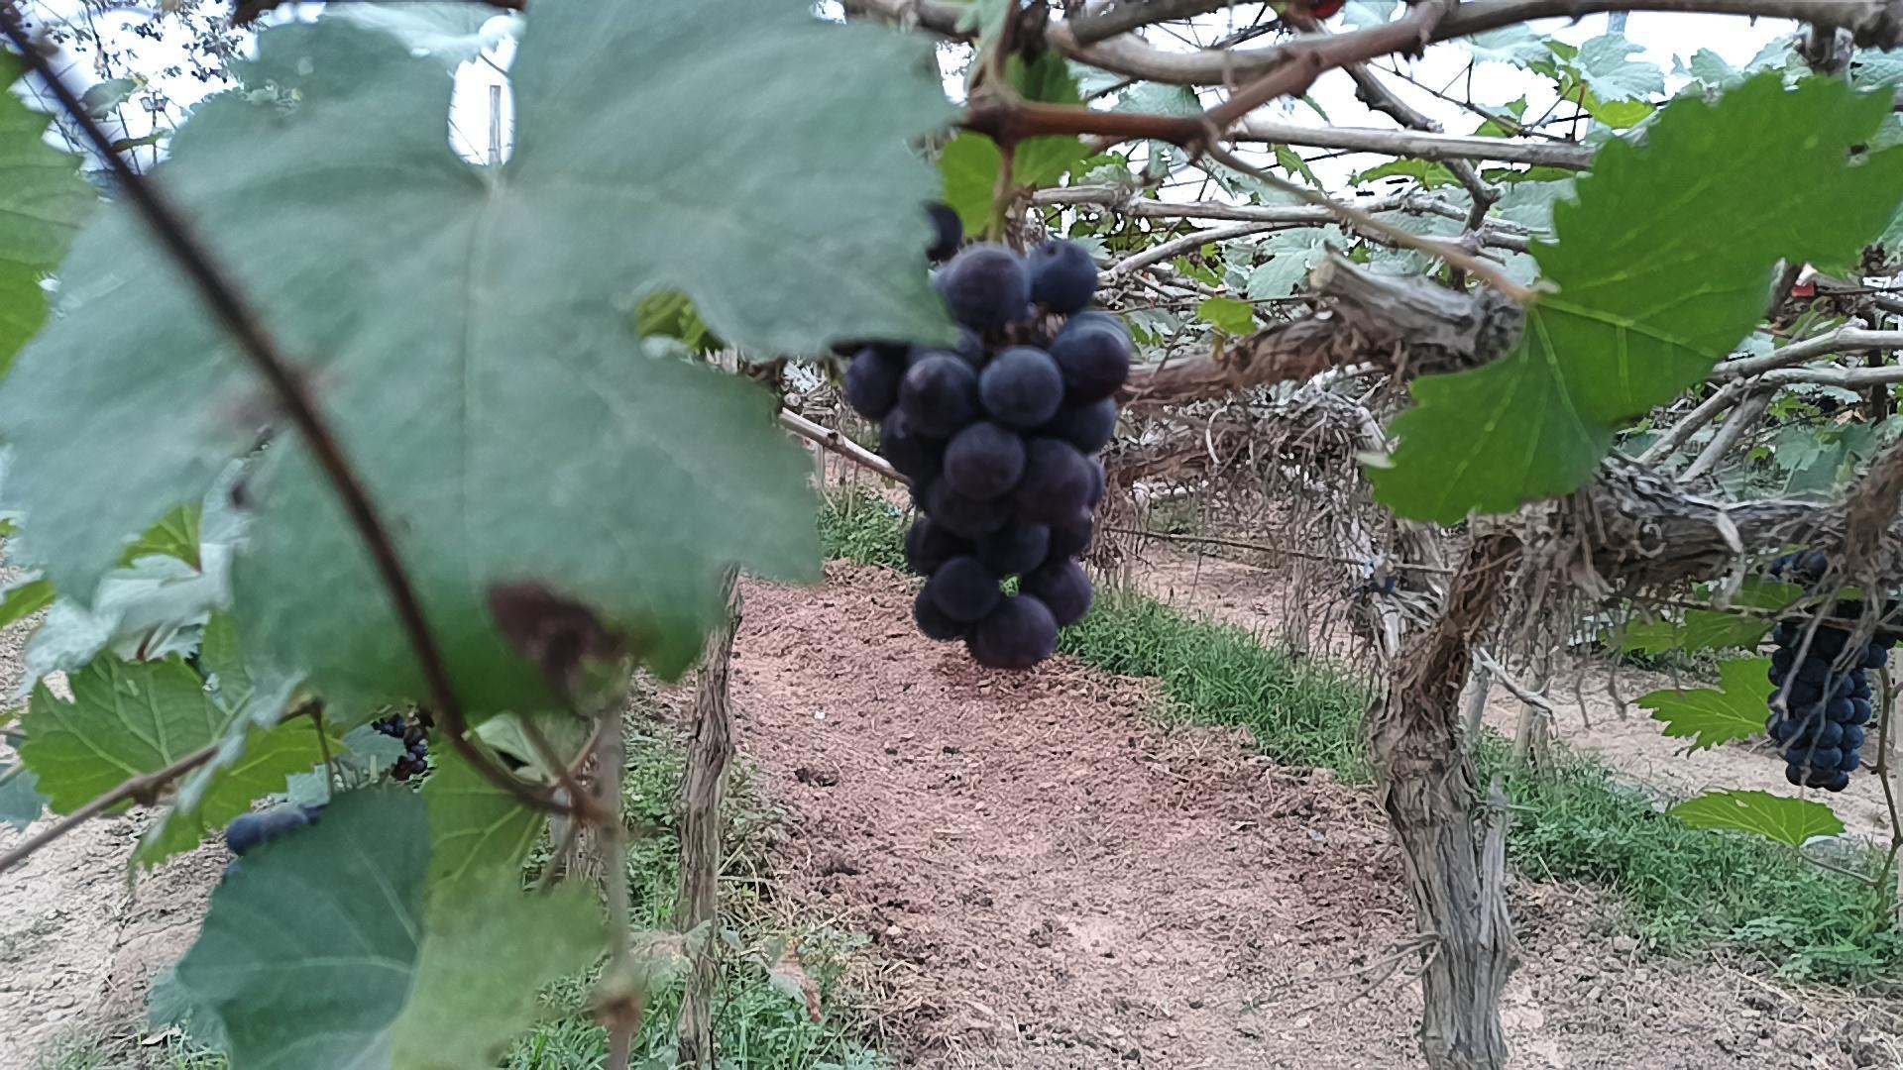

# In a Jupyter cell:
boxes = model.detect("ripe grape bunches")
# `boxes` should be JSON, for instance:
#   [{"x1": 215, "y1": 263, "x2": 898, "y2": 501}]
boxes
[
  {"x1": 370, "y1": 708, "x2": 434, "y2": 782},
  {"x1": 837, "y1": 203, "x2": 1130, "y2": 668},
  {"x1": 1755, "y1": 546, "x2": 1902, "y2": 793},
  {"x1": 222, "y1": 802, "x2": 329, "y2": 876}
]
